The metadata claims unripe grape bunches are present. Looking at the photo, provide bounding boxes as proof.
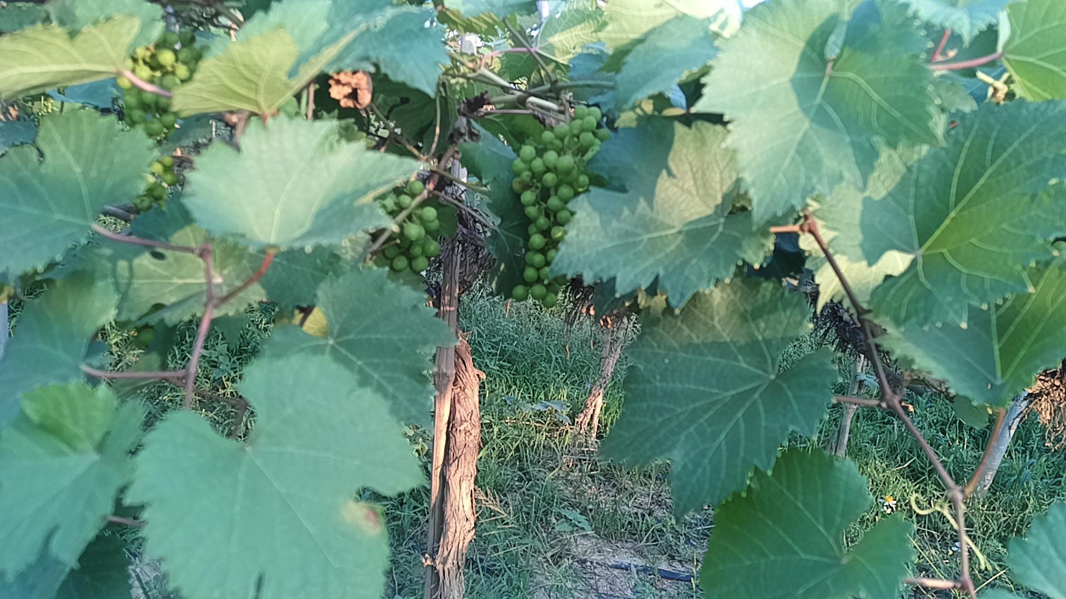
[509,106,609,307]
[118,28,205,210]
[370,179,442,273]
